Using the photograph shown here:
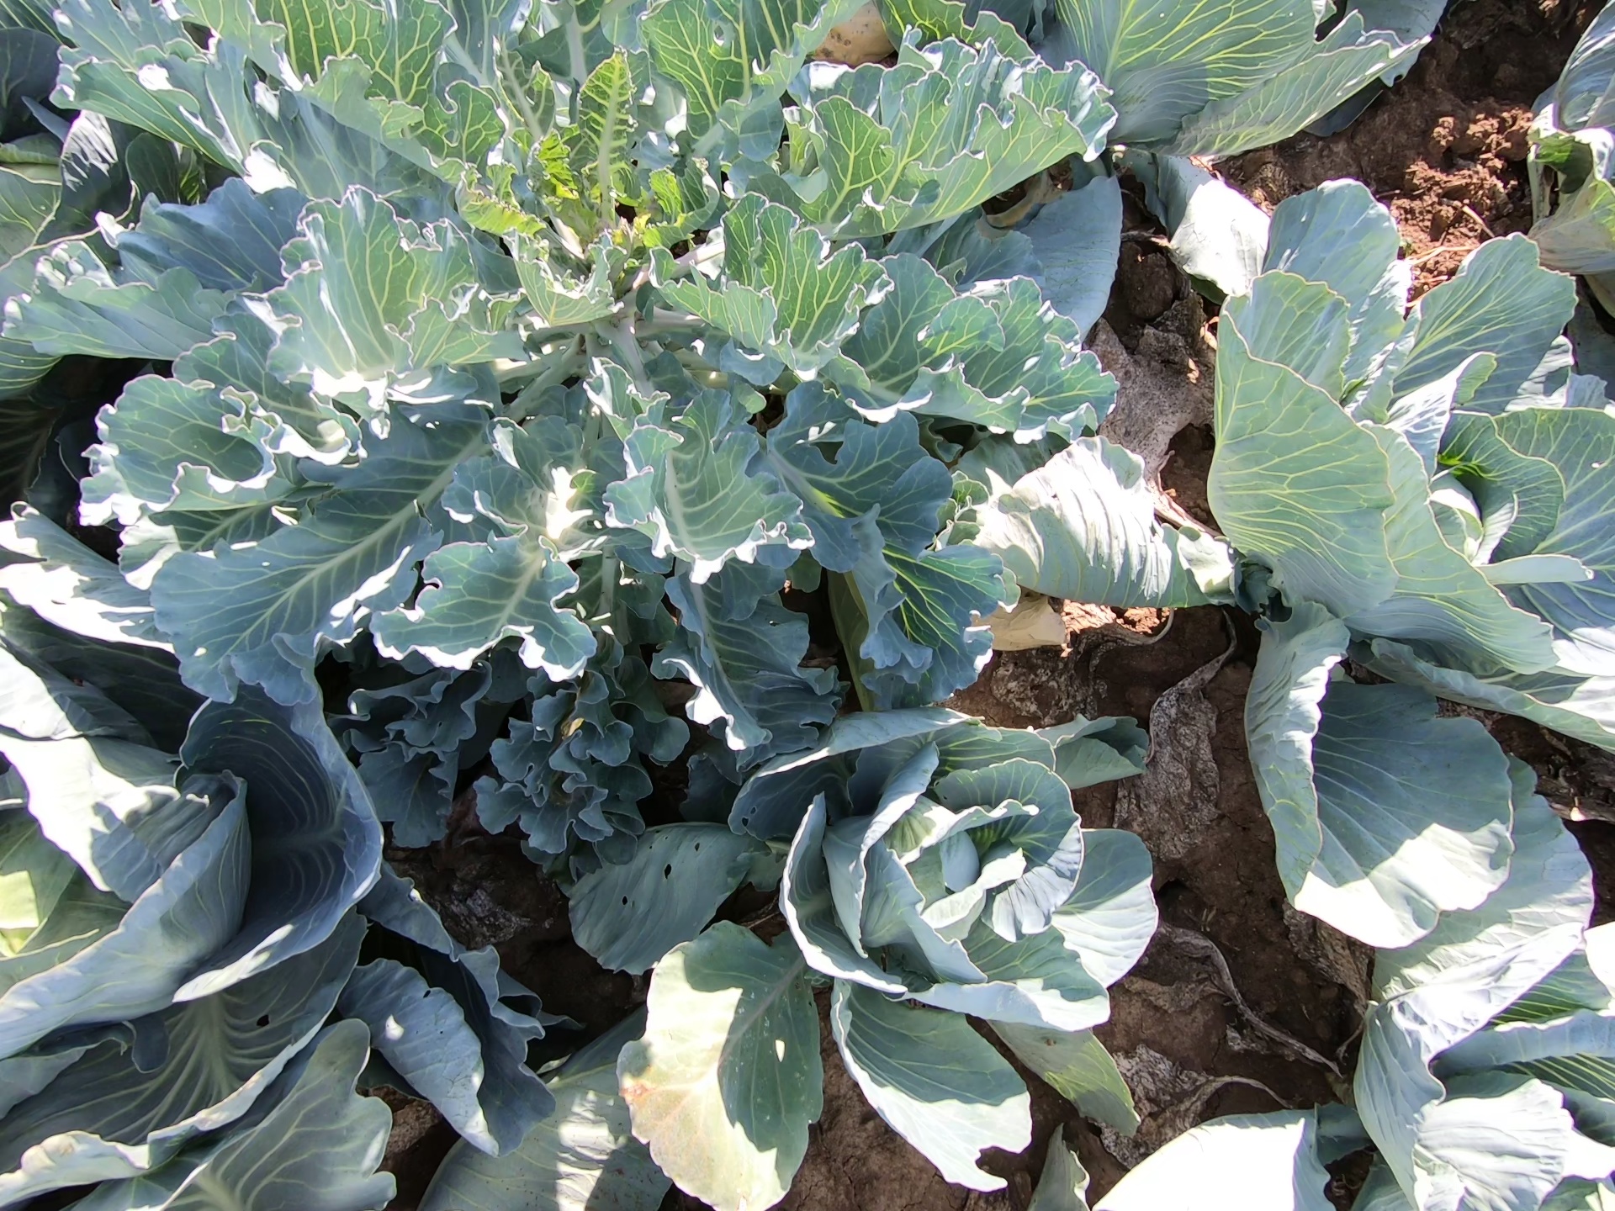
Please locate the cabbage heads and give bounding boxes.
[4,772,197,1023]
[1357,452,1483,578]
[1410,1101,1611,1208]
[3,117,165,320]
[869,796,987,927]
